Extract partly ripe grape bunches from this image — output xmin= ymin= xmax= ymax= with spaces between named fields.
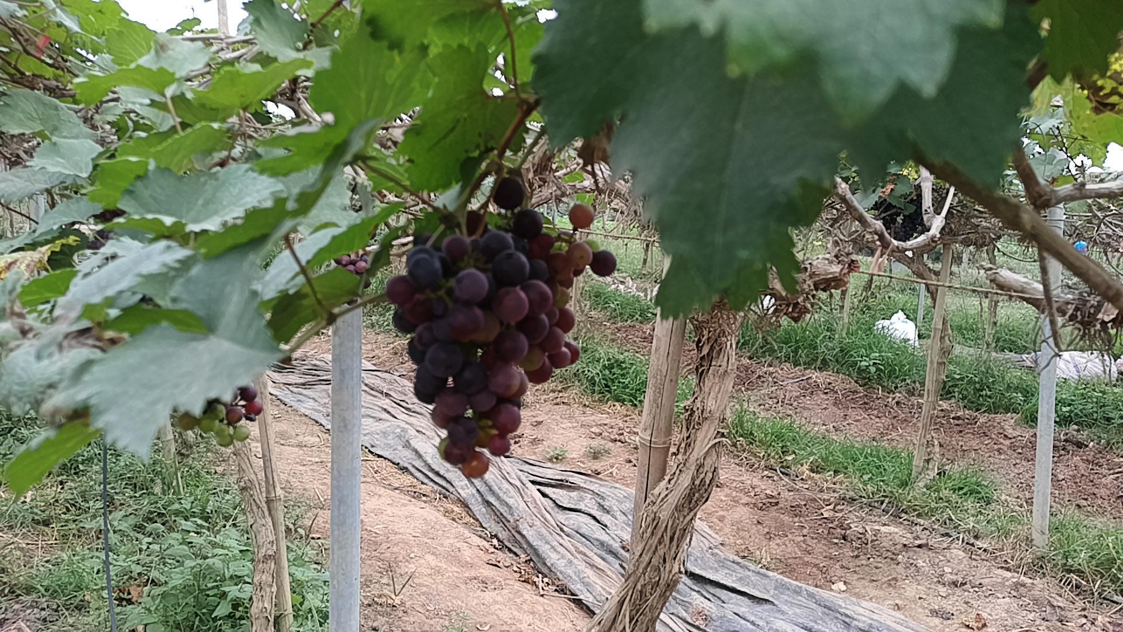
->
xmin=174 ymin=386 xmax=263 ymax=446
xmin=385 ymin=177 xmax=618 ymax=476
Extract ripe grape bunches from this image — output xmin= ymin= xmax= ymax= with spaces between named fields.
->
xmin=872 ymin=199 xmax=902 ymax=231
xmin=333 ymin=253 xmax=372 ymax=305
xmin=898 ymin=188 xmax=924 ymax=242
